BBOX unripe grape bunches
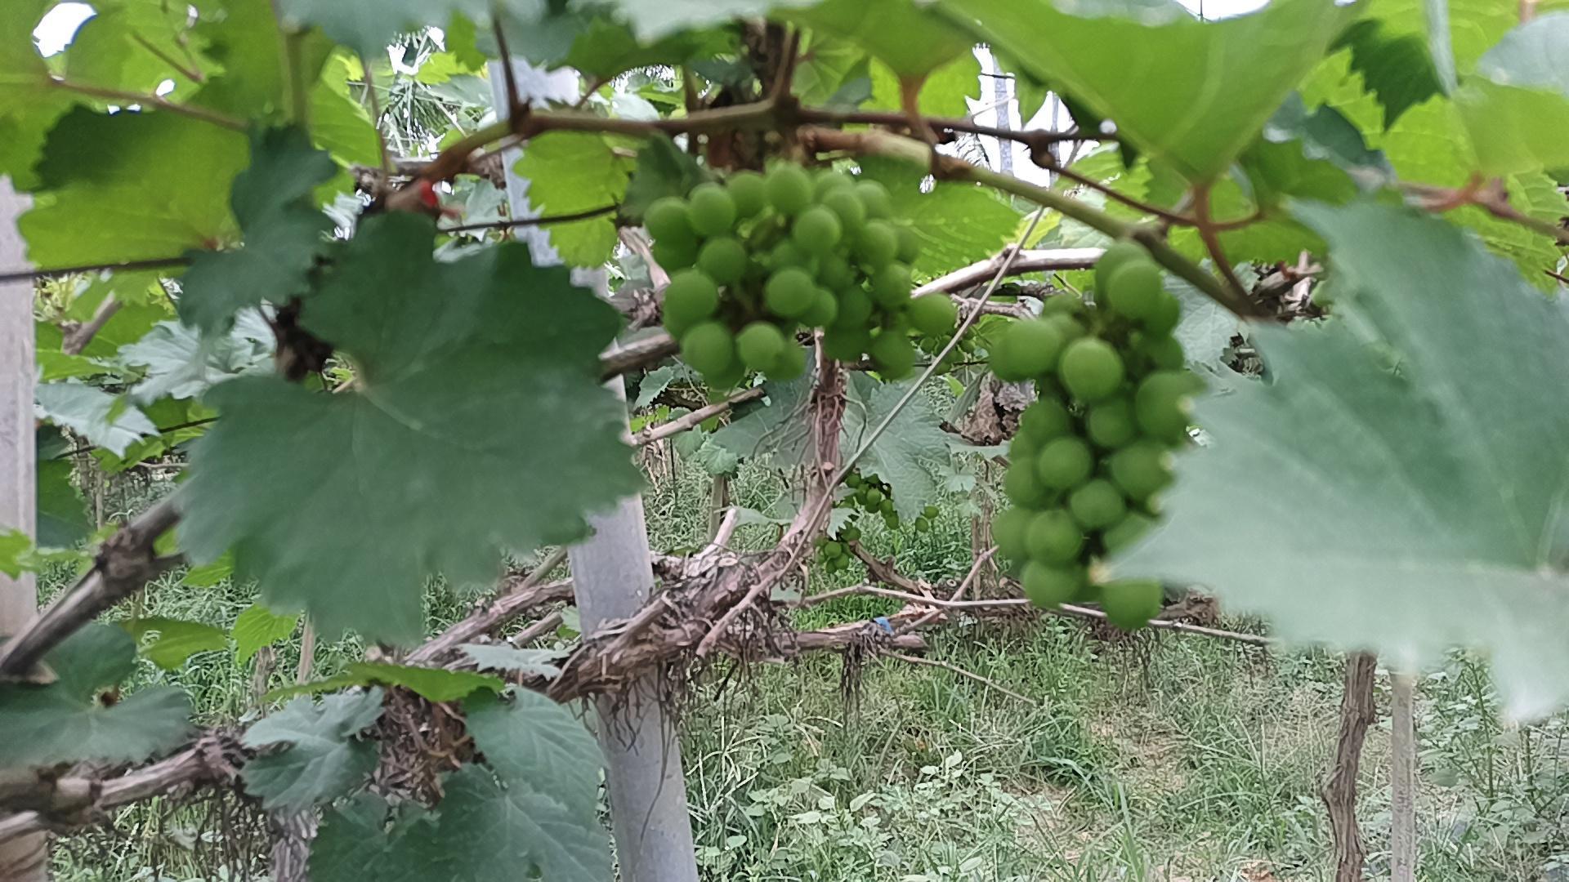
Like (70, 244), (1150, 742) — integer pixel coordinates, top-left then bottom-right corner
(989, 237), (1204, 629)
(815, 493), (861, 575)
(644, 163), (958, 390)
(844, 473), (939, 532)
(919, 325), (975, 376)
